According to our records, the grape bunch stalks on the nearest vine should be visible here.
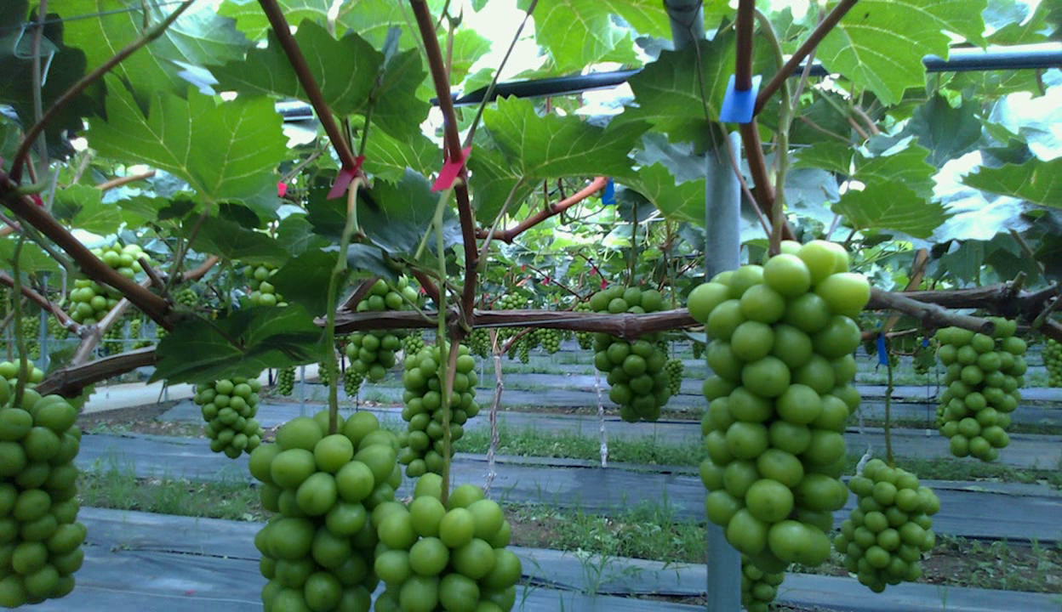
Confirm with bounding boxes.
[11,234,28,410]
[755,8,794,257]
[326,178,362,438]
[431,177,461,511]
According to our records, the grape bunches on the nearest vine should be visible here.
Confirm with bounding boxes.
[371,473,522,611]
[0,376,88,609]
[688,239,870,573]
[248,409,402,611]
